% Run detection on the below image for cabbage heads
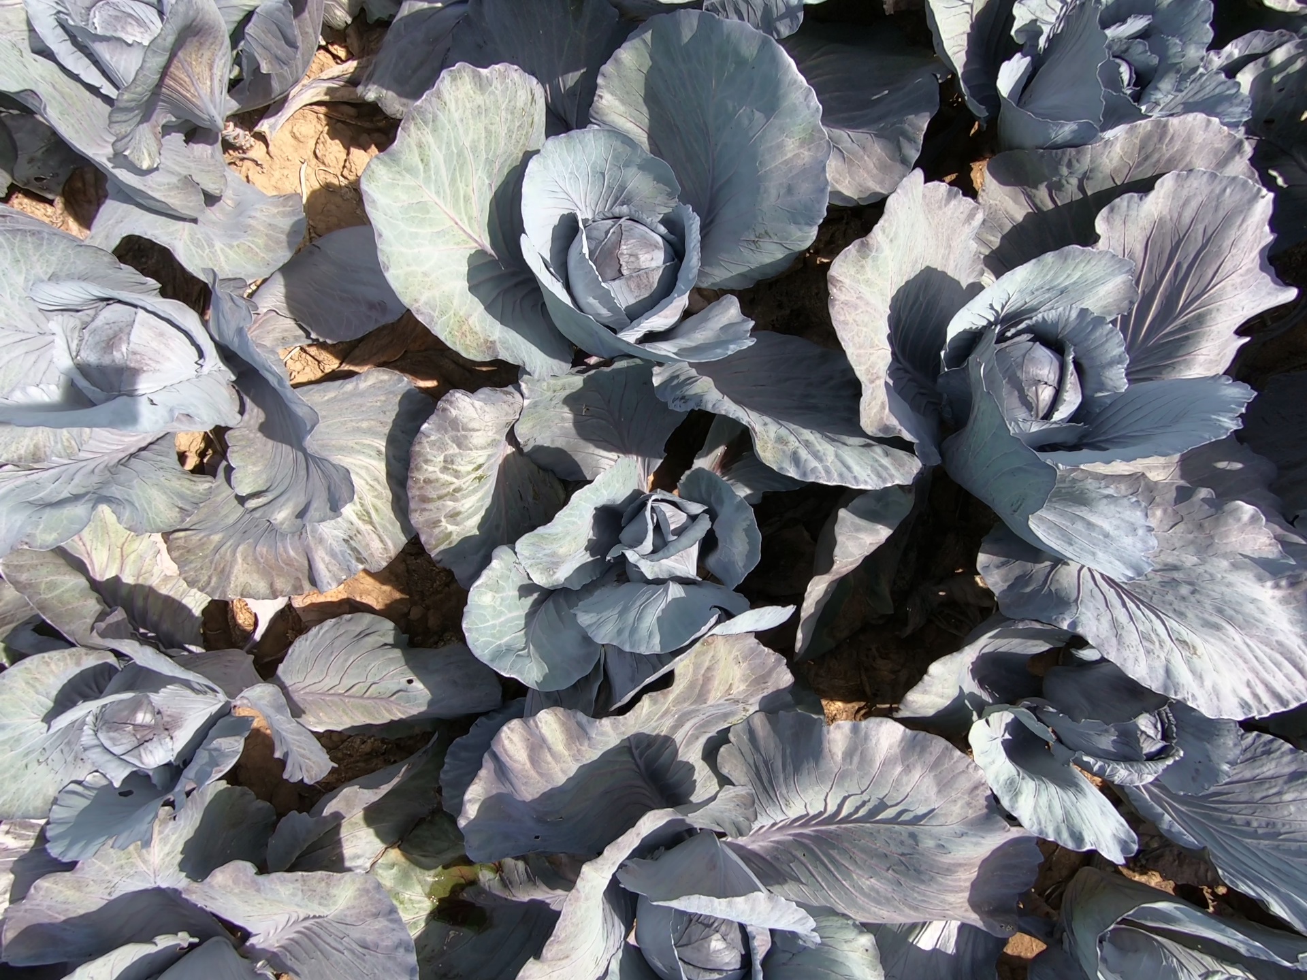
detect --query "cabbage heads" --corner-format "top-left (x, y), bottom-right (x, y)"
top-left (981, 341), bottom-right (1082, 446)
top-left (632, 504), bottom-right (693, 575)
top-left (95, 675), bottom-right (210, 769)
top-left (569, 218), bottom-right (682, 326)
top-left (1065, 685), bottom-right (1164, 764)
top-left (90, 1), bottom-right (182, 87)
top-left (76, 299), bottom-right (209, 411)
top-left (1086, 59), bottom-right (1132, 108)
top-left (639, 851), bottom-right (771, 977)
